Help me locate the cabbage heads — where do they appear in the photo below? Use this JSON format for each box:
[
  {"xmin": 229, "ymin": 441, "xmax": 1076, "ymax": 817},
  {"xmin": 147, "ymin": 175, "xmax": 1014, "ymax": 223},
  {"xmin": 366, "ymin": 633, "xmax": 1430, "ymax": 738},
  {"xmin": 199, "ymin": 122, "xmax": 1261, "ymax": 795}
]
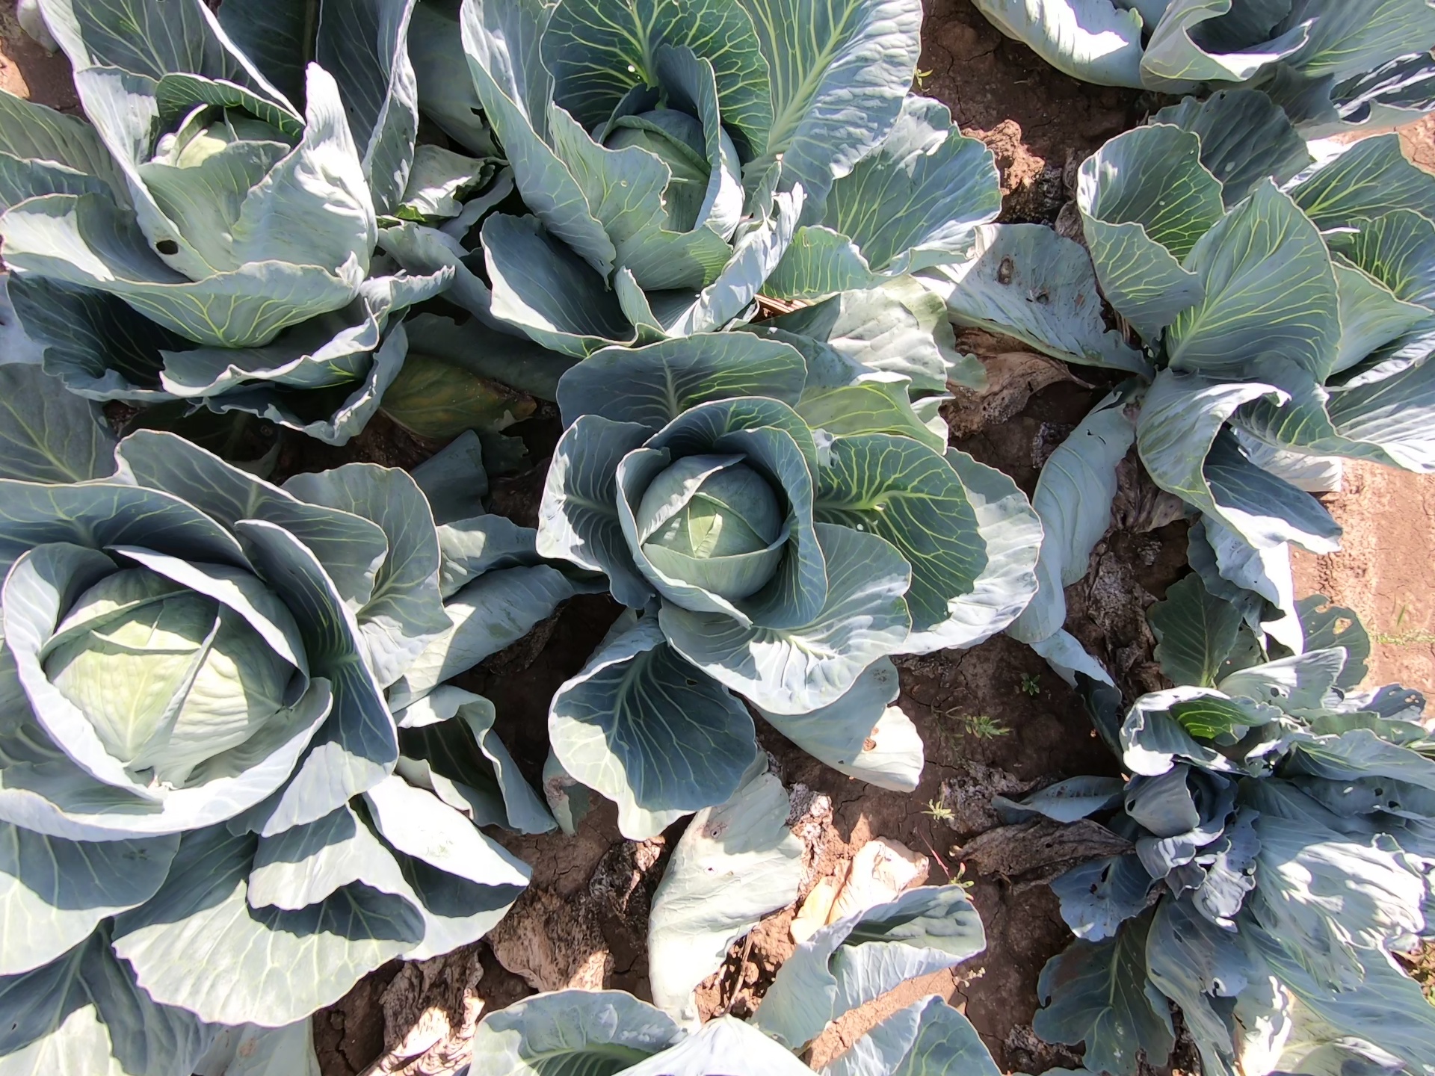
[
  {"xmin": 641, "ymin": 461, "xmax": 780, "ymax": 596},
  {"xmin": 45, "ymin": 566, "xmax": 282, "ymax": 770},
  {"xmin": 161, "ymin": 114, "xmax": 325, "ymax": 286},
  {"xmin": 594, "ymin": 110, "xmax": 732, "ymax": 255}
]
